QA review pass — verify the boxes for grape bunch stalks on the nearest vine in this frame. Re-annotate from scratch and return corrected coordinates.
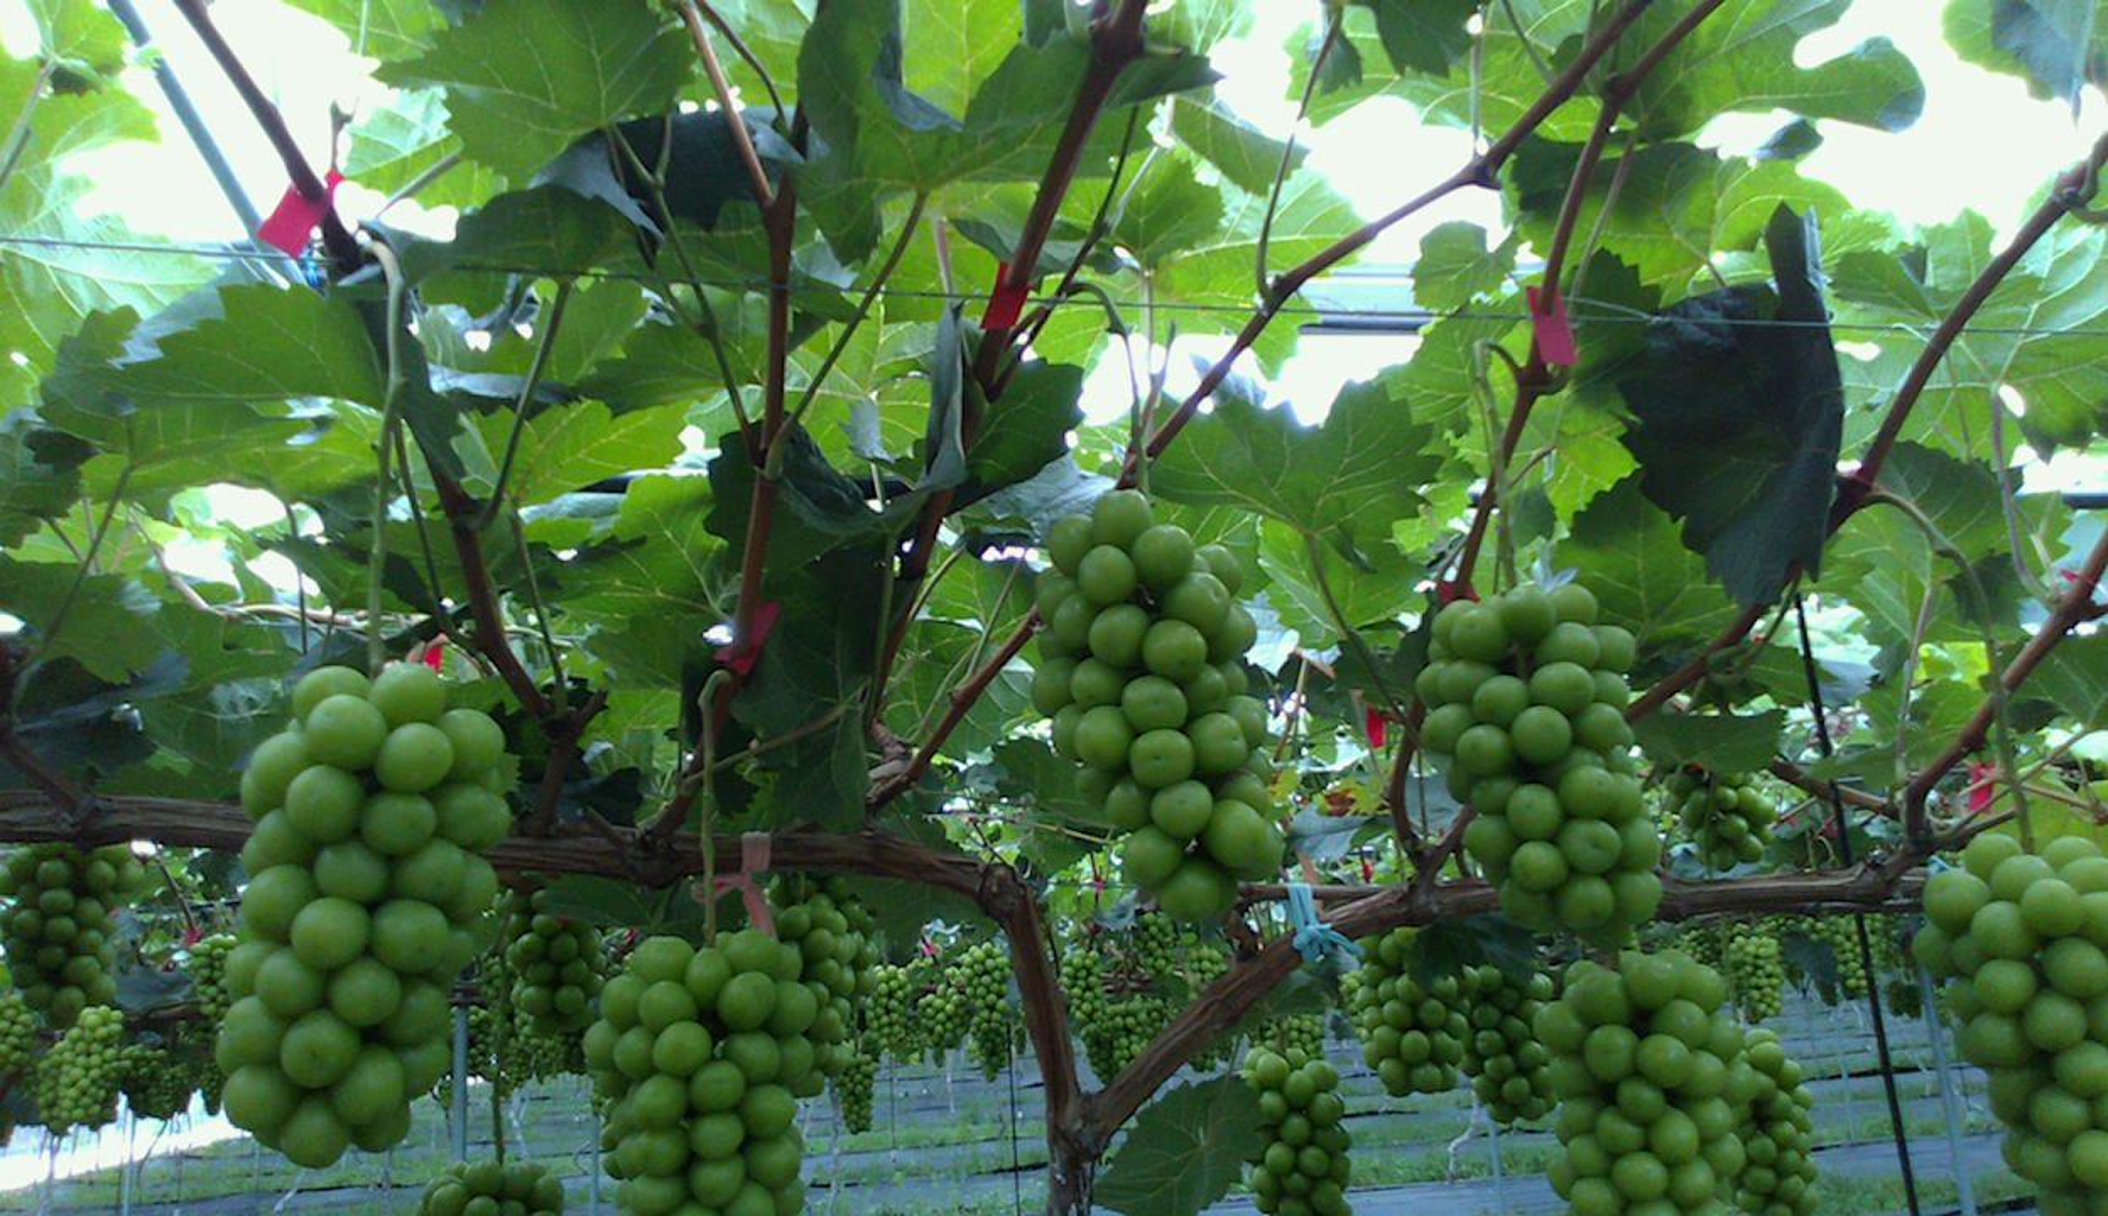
[1866,491,2039,855]
[1066,282,1154,503]
[698,670,731,947]
[363,236,410,681]
[1473,338,1519,589]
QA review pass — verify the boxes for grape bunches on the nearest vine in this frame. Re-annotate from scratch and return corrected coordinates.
[215,660,512,1170]
[1415,583,1664,954]
[584,931,819,1214]
[1029,491,1284,926]
[1532,949,1760,1214]
[1909,834,2106,1214]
